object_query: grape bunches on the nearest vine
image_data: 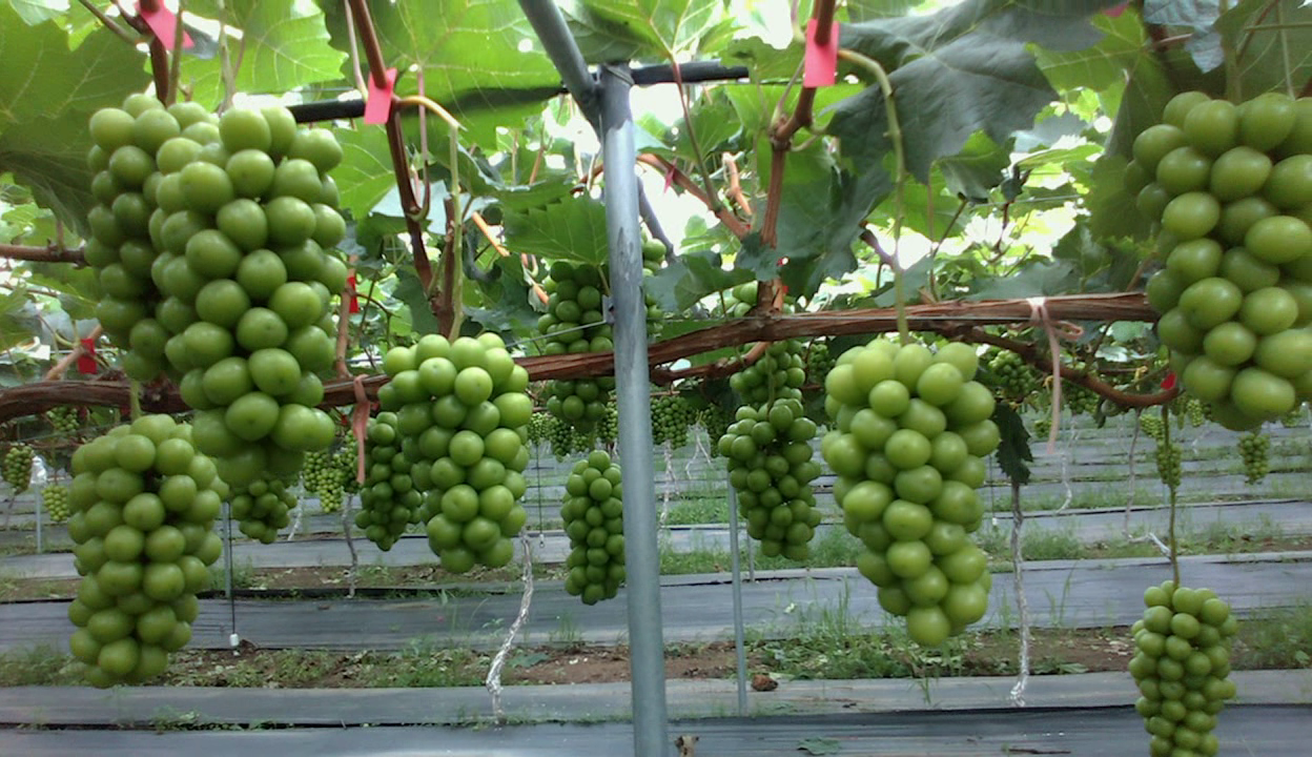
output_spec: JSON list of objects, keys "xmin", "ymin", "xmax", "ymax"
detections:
[
  {"xmin": 82, "ymin": 95, "xmax": 219, "ymax": 381},
  {"xmin": 1120, "ymin": 91, "xmax": 1311, "ymax": 432},
  {"xmin": 65, "ymin": 414, "xmax": 229, "ymax": 690},
  {"xmin": 382, "ymin": 332, "xmax": 533, "ymax": 574},
  {"xmin": 1127, "ymin": 580, "xmax": 1238, "ymax": 756},
  {"xmin": 149, "ymin": 105, "xmax": 349, "ymax": 489},
  {"xmin": 820, "ymin": 340, "xmax": 1000, "ymax": 650}
]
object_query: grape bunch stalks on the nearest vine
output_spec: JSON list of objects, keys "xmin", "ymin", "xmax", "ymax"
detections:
[
  {"xmin": 394, "ymin": 96, "xmax": 464, "ymax": 345},
  {"xmin": 1216, "ymin": 0, "xmax": 1245, "ymax": 102},
  {"xmin": 859, "ymin": 225, "xmax": 910, "ymax": 348},
  {"xmin": 129, "ymin": 381, "xmax": 142, "ymax": 425},
  {"xmin": 166, "ymin": 1, "xmax": 186, "ymax": 106},
  {"xmin": 218, "ymin": 29, "xmax": 238, "ymax": 111},
  {"xmin": 1163, "ymin": 405, "xmax": 1180, "ymax": 589}
]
